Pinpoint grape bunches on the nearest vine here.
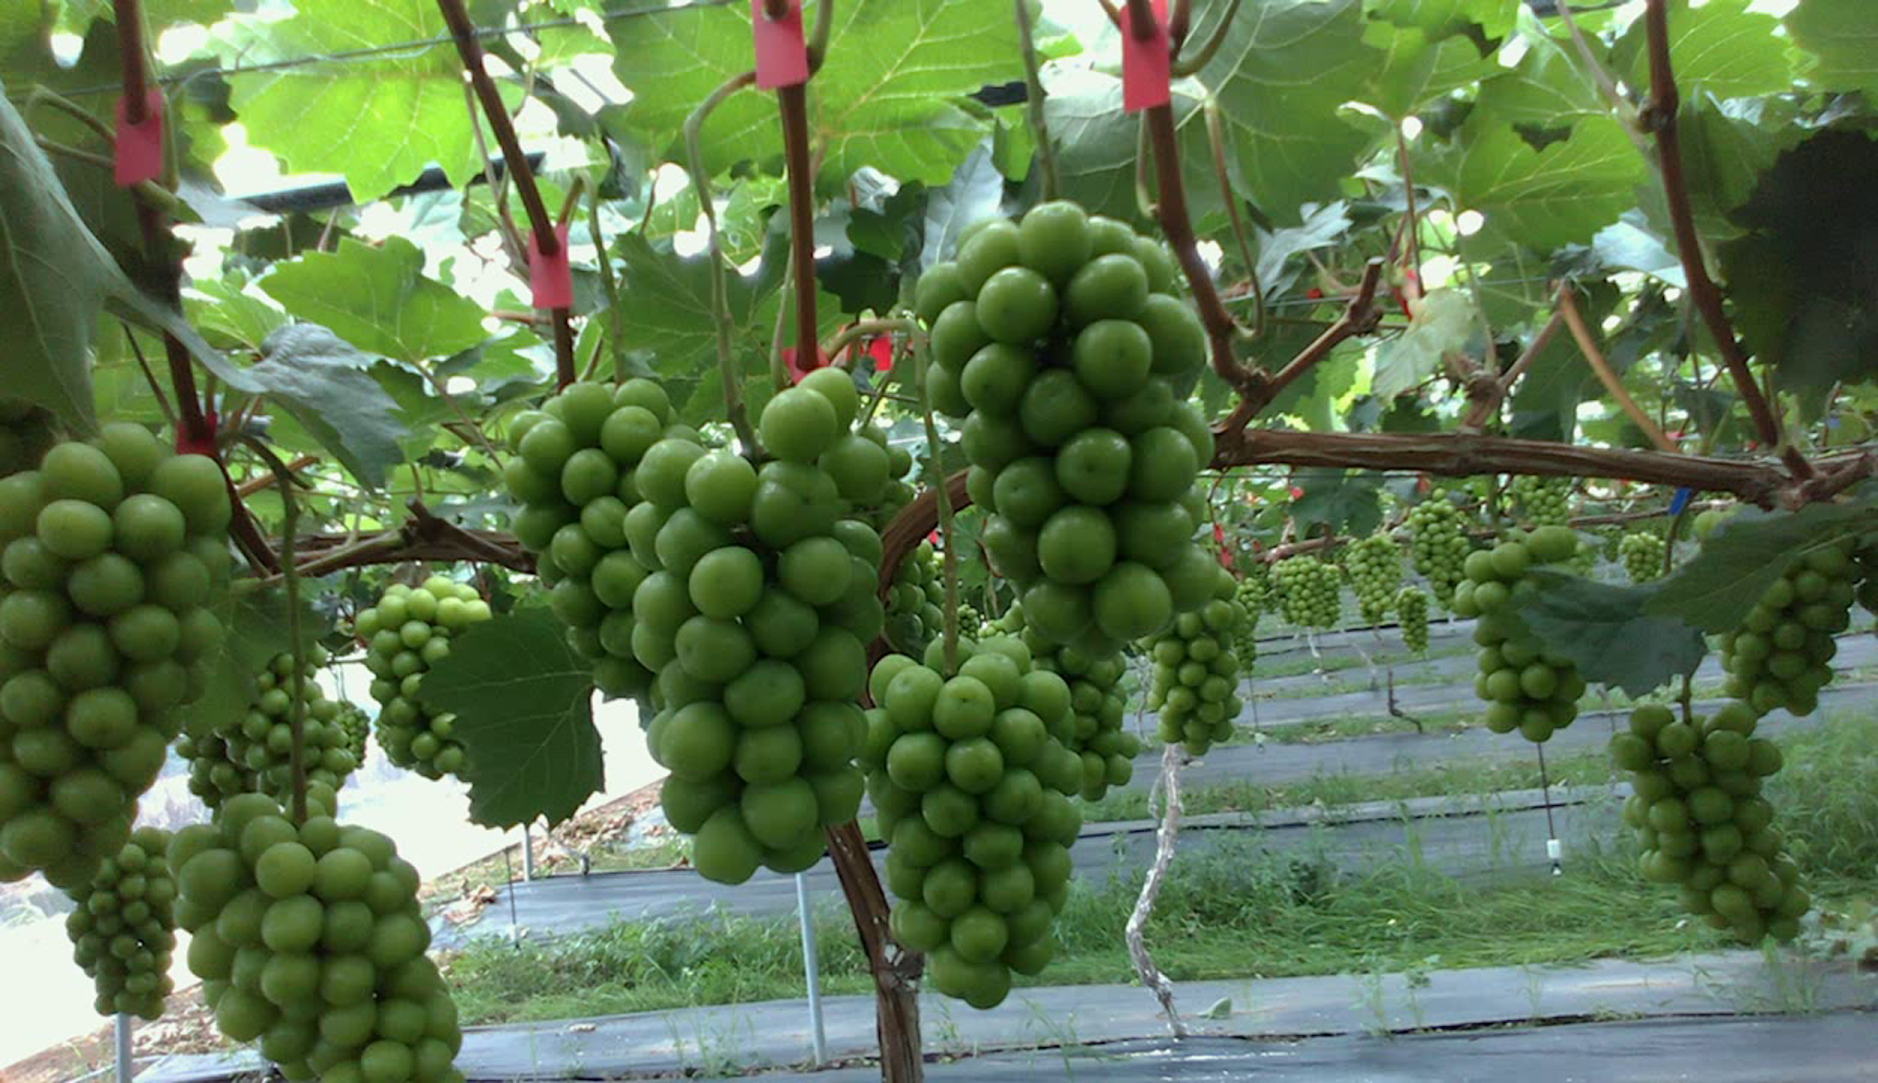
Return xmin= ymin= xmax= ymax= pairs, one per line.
xmin=913 ymin=200 xmax=1220 ymax=659
xmin=0 ymin=421 xmax=235 ymax=890
xmin=621 ymin=367 xmax=892 ymax=887
xmin=507 ymin=379 xmax=701 ymax=698
xmin=862 ymin=636 xmax=1083 ymax=1012
xmin=164 ymin=791 xmax=465 ymax=1081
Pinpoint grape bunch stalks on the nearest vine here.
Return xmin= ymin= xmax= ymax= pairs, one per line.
xmin=826 ymin=319 xmax=960 ymax=675
xmin=689 ymin=71 xmax=764 ymax=460
xmin=63 ymin=421 xmax=84 ymax=439
xmin=1019 ymin=2 xmax=1059 ymax=197
xmin=563 ymin=168 xmax=628 ymax=381
xmin=220 ymin=429 xmax=307 ymax=823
